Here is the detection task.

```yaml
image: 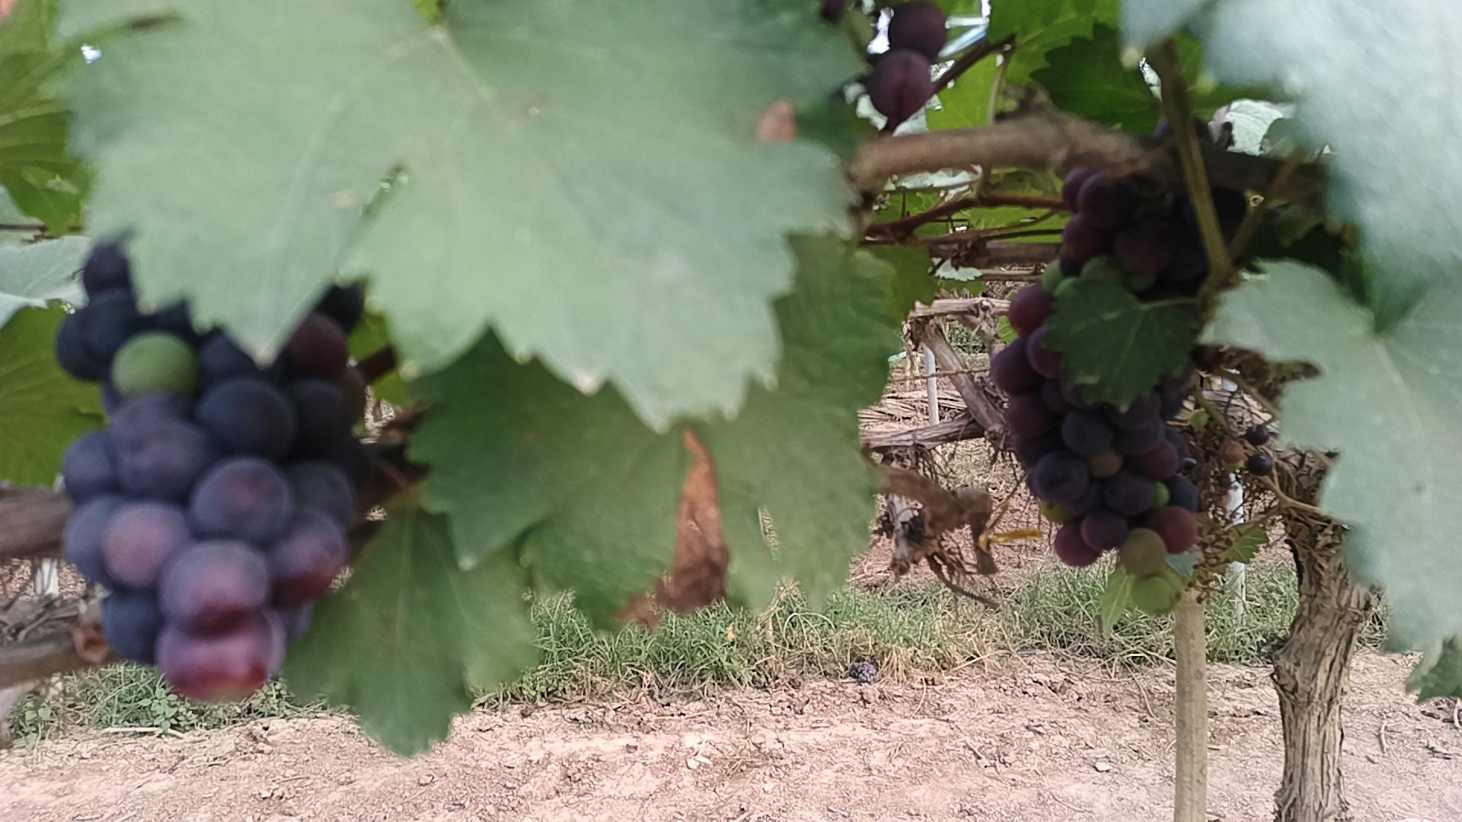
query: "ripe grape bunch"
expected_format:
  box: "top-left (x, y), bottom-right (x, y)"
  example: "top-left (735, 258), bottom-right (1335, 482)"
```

top-left (861, 0), bottom-right (947, 132)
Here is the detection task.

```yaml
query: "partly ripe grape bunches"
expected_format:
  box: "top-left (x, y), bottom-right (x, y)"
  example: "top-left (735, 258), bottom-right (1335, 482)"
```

top-left (1218, 424), bottom-right (1275, 477)
top-left (56, 242), bottom-right (372, 698)
top-left (991, 113), bottom-right (1249, 612)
